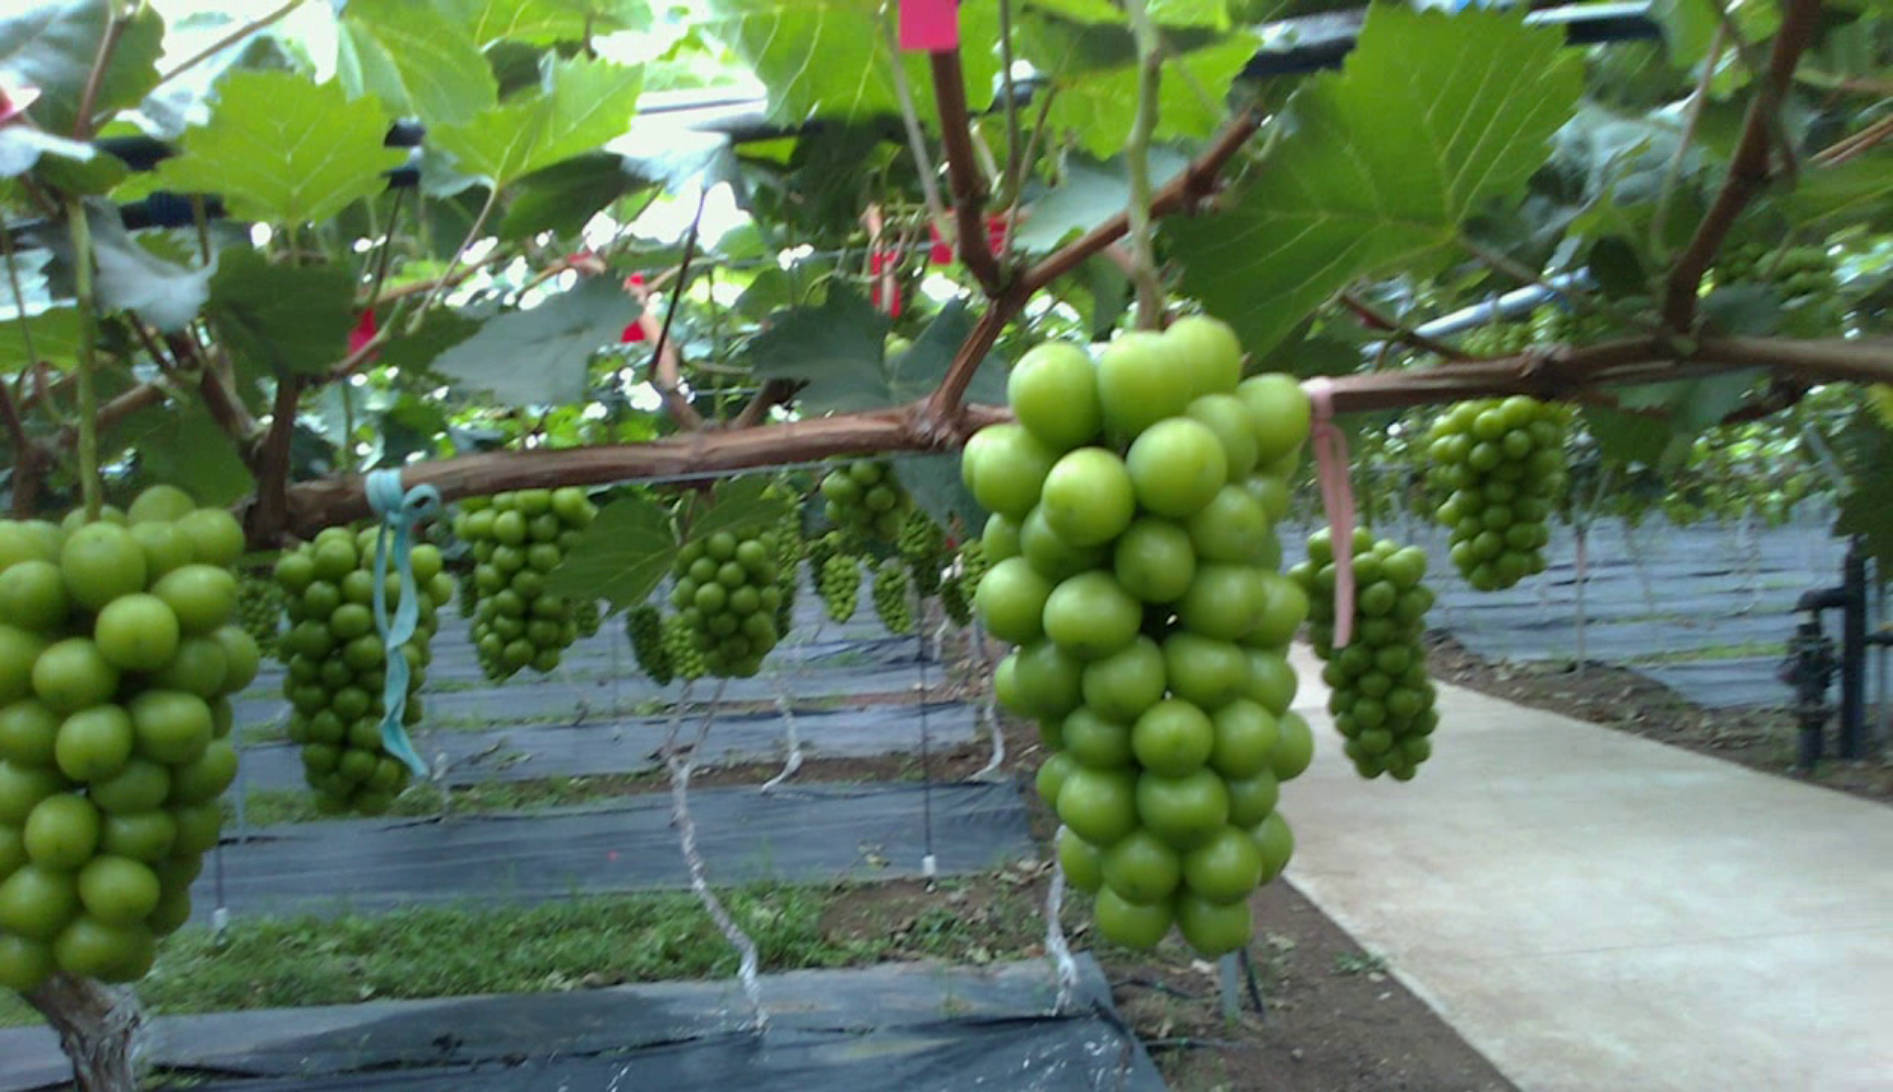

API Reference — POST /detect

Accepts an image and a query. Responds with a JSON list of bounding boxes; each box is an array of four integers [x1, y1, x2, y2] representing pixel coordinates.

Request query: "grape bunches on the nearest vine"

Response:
[[960, 312, 1315, 959], [0, 484, 261, 992]]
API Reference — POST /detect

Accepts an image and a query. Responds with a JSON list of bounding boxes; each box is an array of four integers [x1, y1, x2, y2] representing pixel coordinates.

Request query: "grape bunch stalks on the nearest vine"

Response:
[[62, 194, 100, 525], [1124, 0, 1163, 331]]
